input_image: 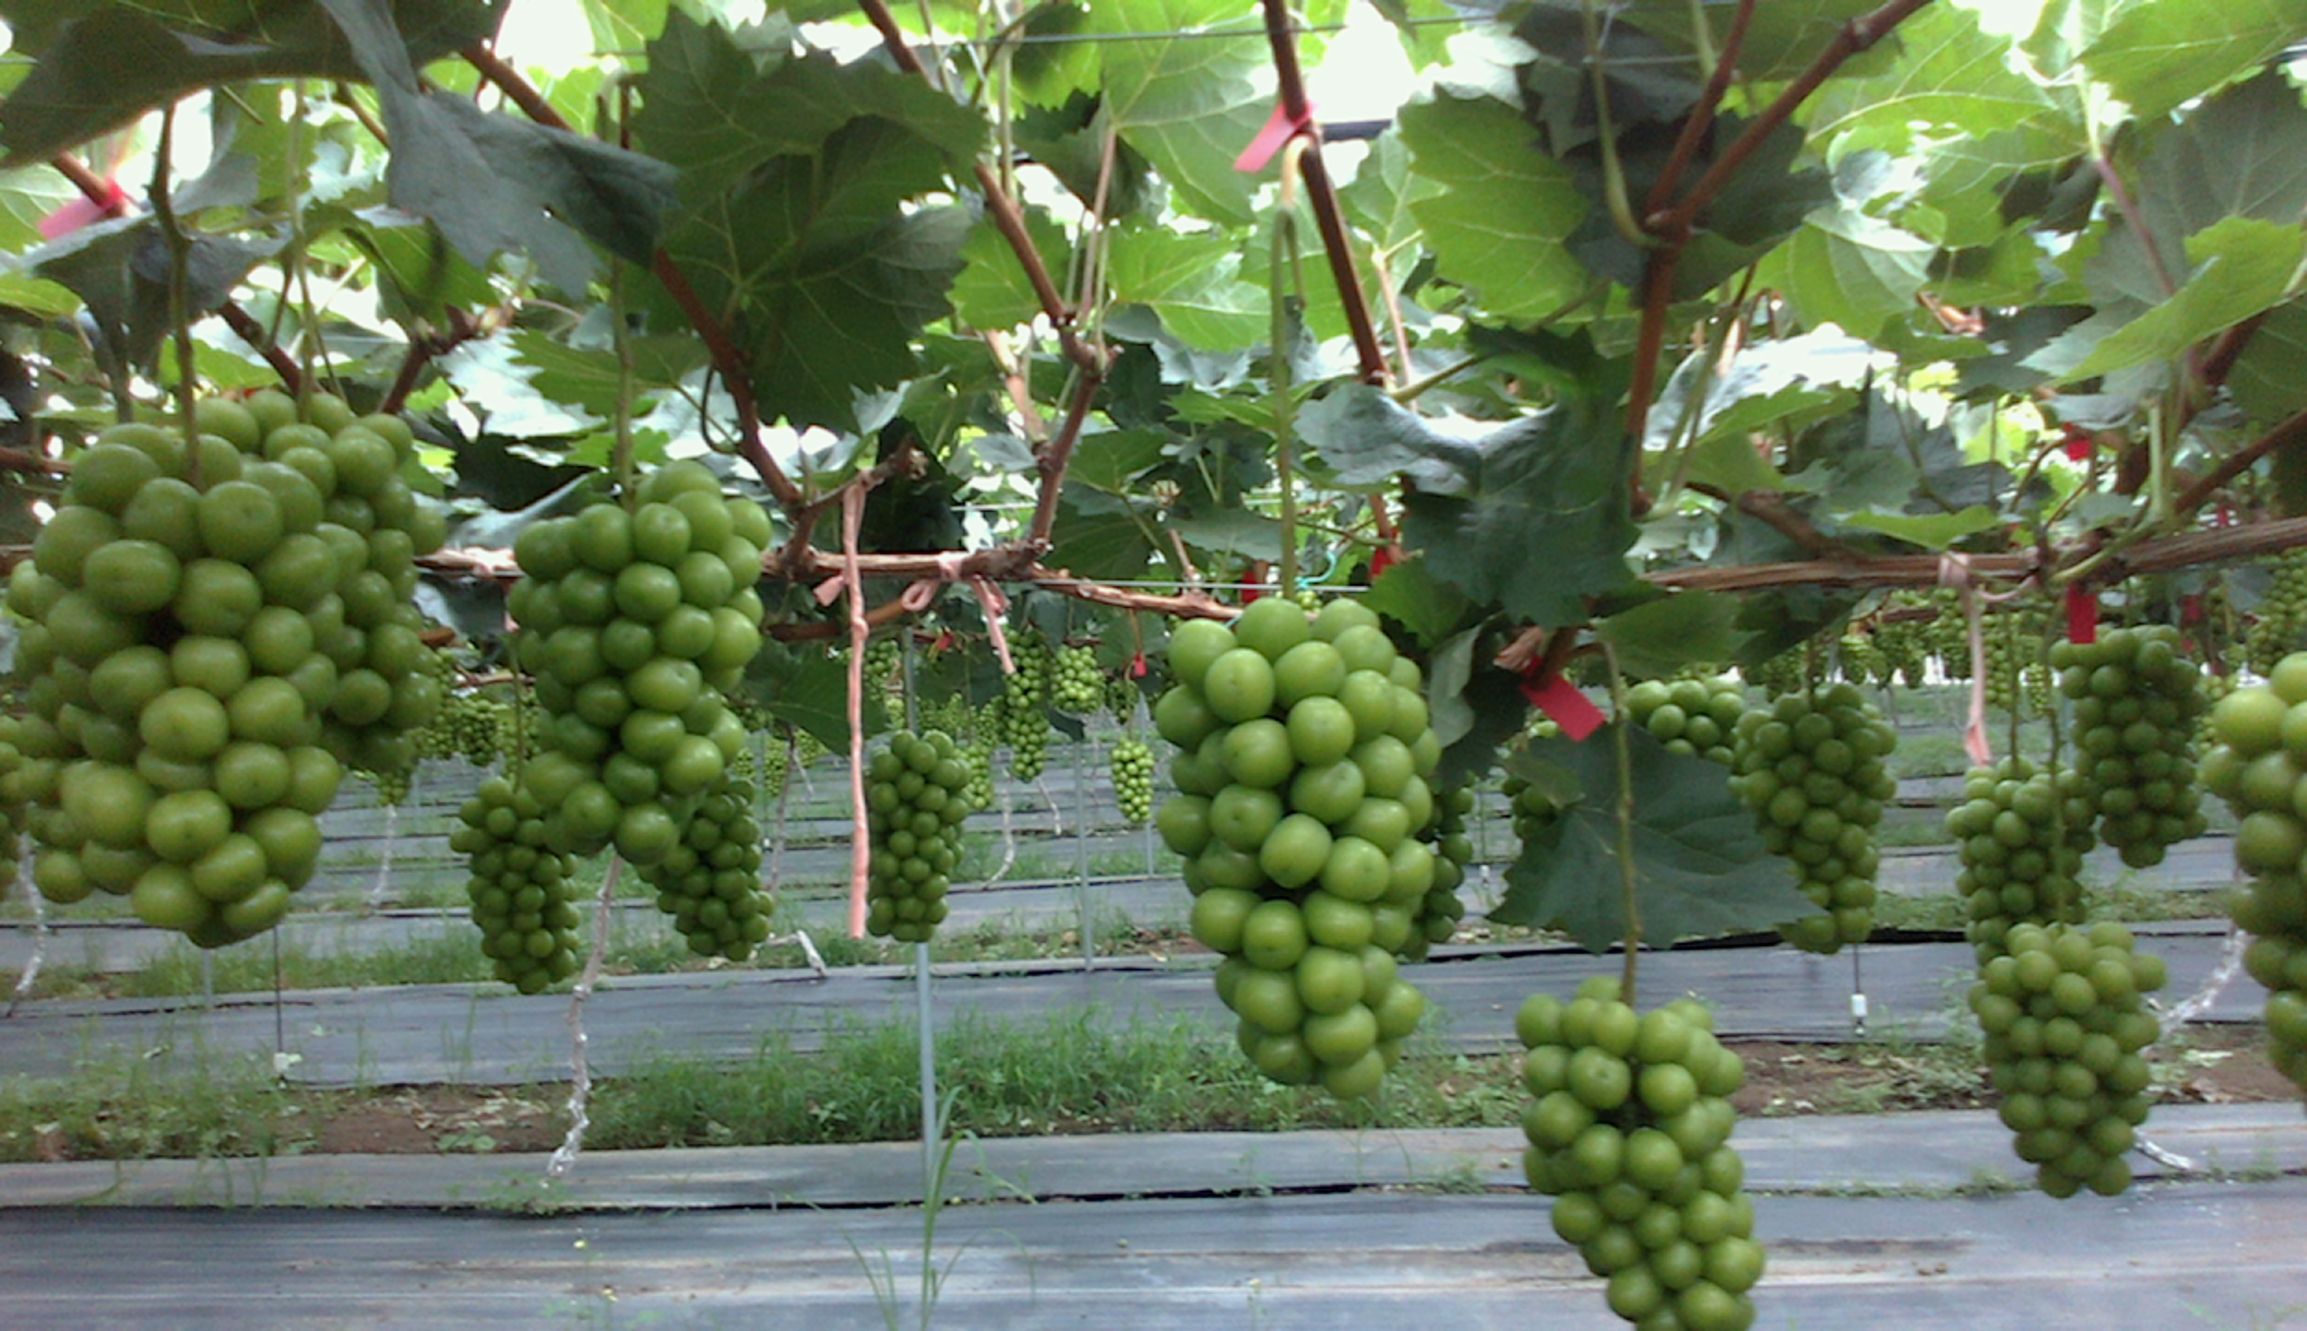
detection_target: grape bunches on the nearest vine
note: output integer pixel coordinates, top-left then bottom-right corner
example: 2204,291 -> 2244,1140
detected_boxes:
508,458 -> 771,865
6,397 -> 344,950
242,394 -> 447,775
1514,980 -> 1764,1329
1969,922 -> 2165,1198
1157,597 -> 1440,1102
2200,651 -> 2305,1093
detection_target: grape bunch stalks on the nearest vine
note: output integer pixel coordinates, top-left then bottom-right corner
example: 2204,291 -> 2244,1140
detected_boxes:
1268,133 -> 1309,601
148,105 -> 196,488
1568,640 -> 1636,1007
2037,597 -> 2067,935
283,76 -> 314,425
593,72 -> 636,514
